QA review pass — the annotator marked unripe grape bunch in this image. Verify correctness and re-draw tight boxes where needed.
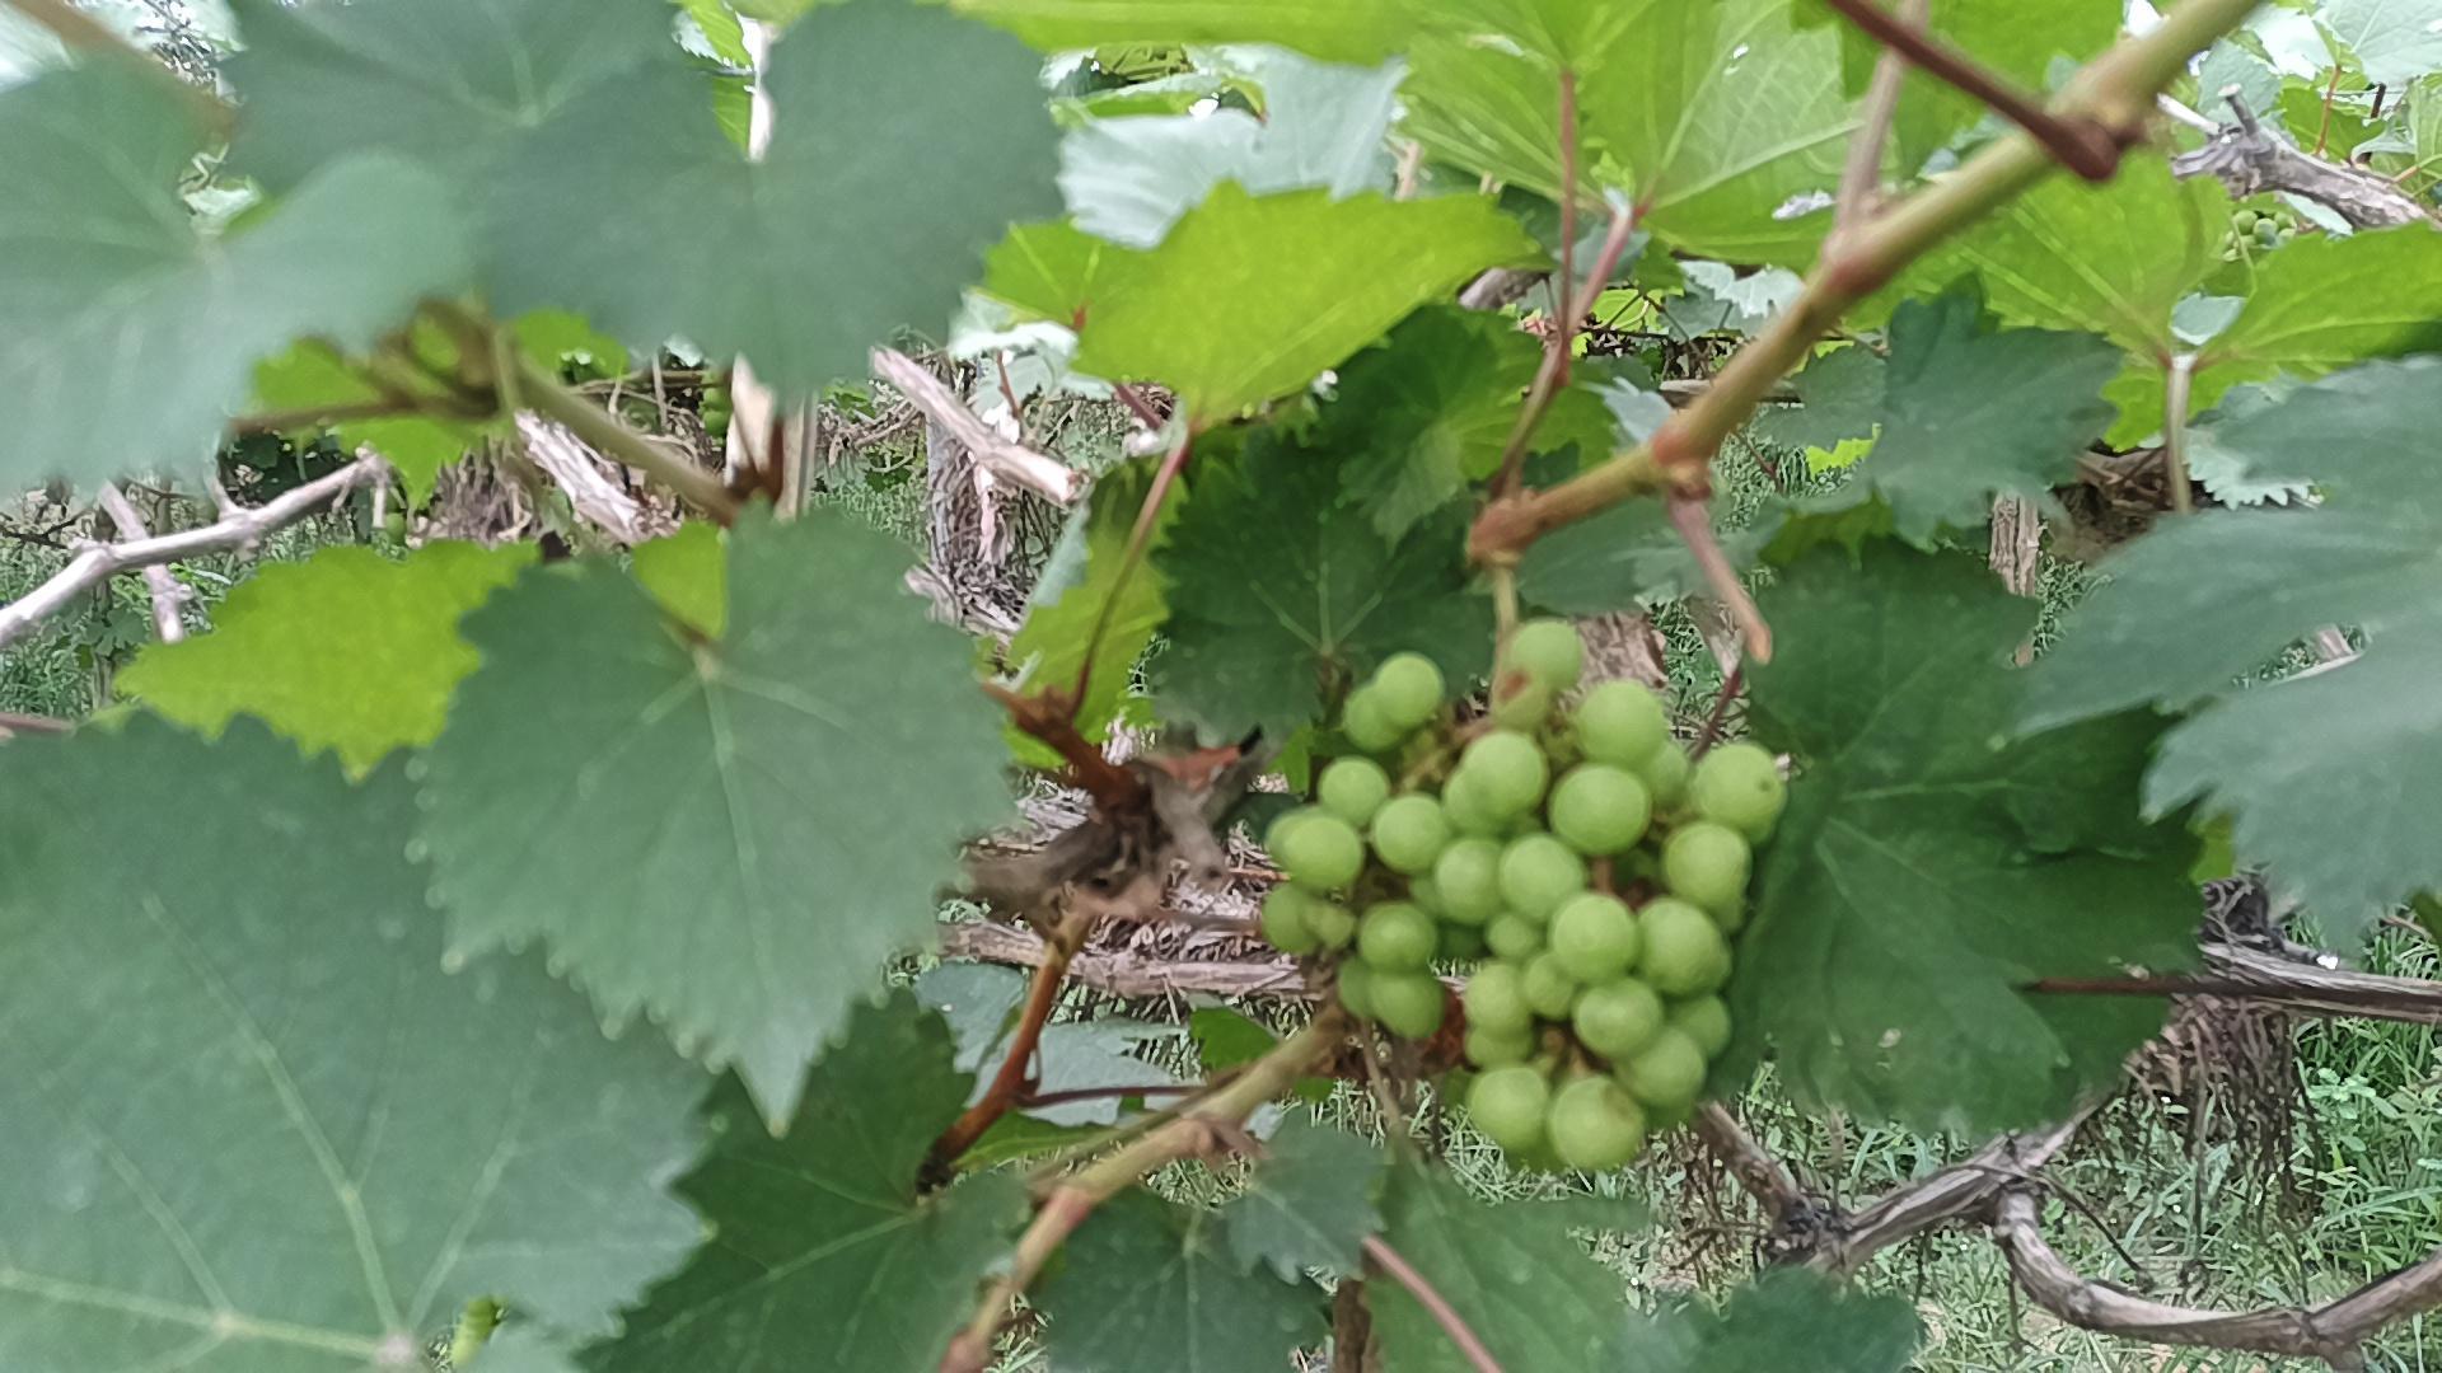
[1263,622,1784,1171]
